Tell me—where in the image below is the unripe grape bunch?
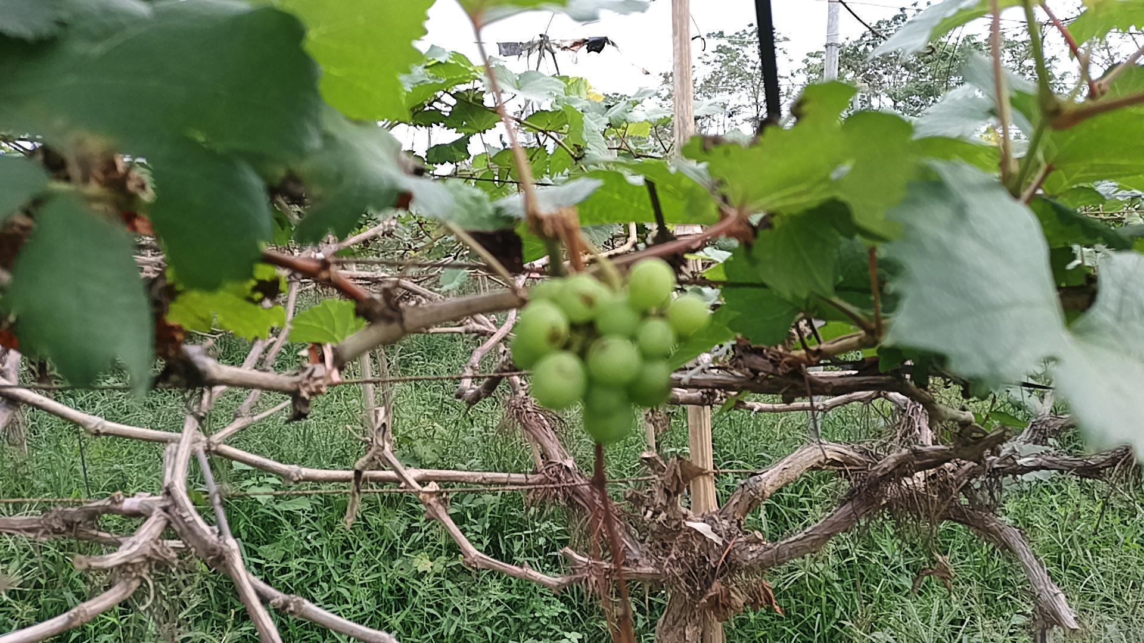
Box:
[512,258,711,445]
